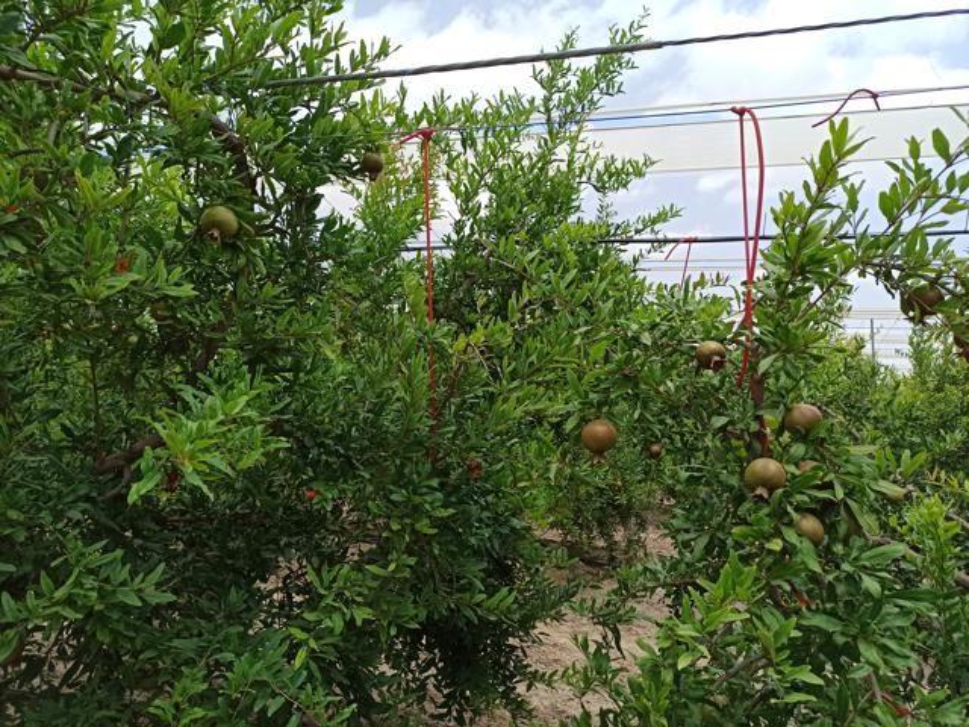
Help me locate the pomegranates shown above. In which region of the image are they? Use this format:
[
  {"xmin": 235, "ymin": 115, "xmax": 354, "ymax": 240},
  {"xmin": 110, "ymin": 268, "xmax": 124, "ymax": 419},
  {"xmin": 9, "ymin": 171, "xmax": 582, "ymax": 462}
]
[
  {"xmin": 743, "ymin": 456, "xmax": 787, "ymax": 501},
  {"xmin": 695, "ymin": 339, "xmax": 727, "ymax": 376},
  {"xmin": 200, "ymin": 204, "xmax": 241, "ymax": 241},
  {"xmin": 795, "ymin": 512, "xmax": 825, "ymax": 547},
  {"xmin": 902, "ymin": 286, "xmax": 945, "ymax": 326},
  {"xmin": 783, "ymin": 403, "xmax": 824, "ymax": 439},
  {"xmin": 360, "ymin": 153, "xmax": 385, "ymax": 183},
  {"xmin": 578, "ymin": 418, "xmax": 619, "ymax": 465}
]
